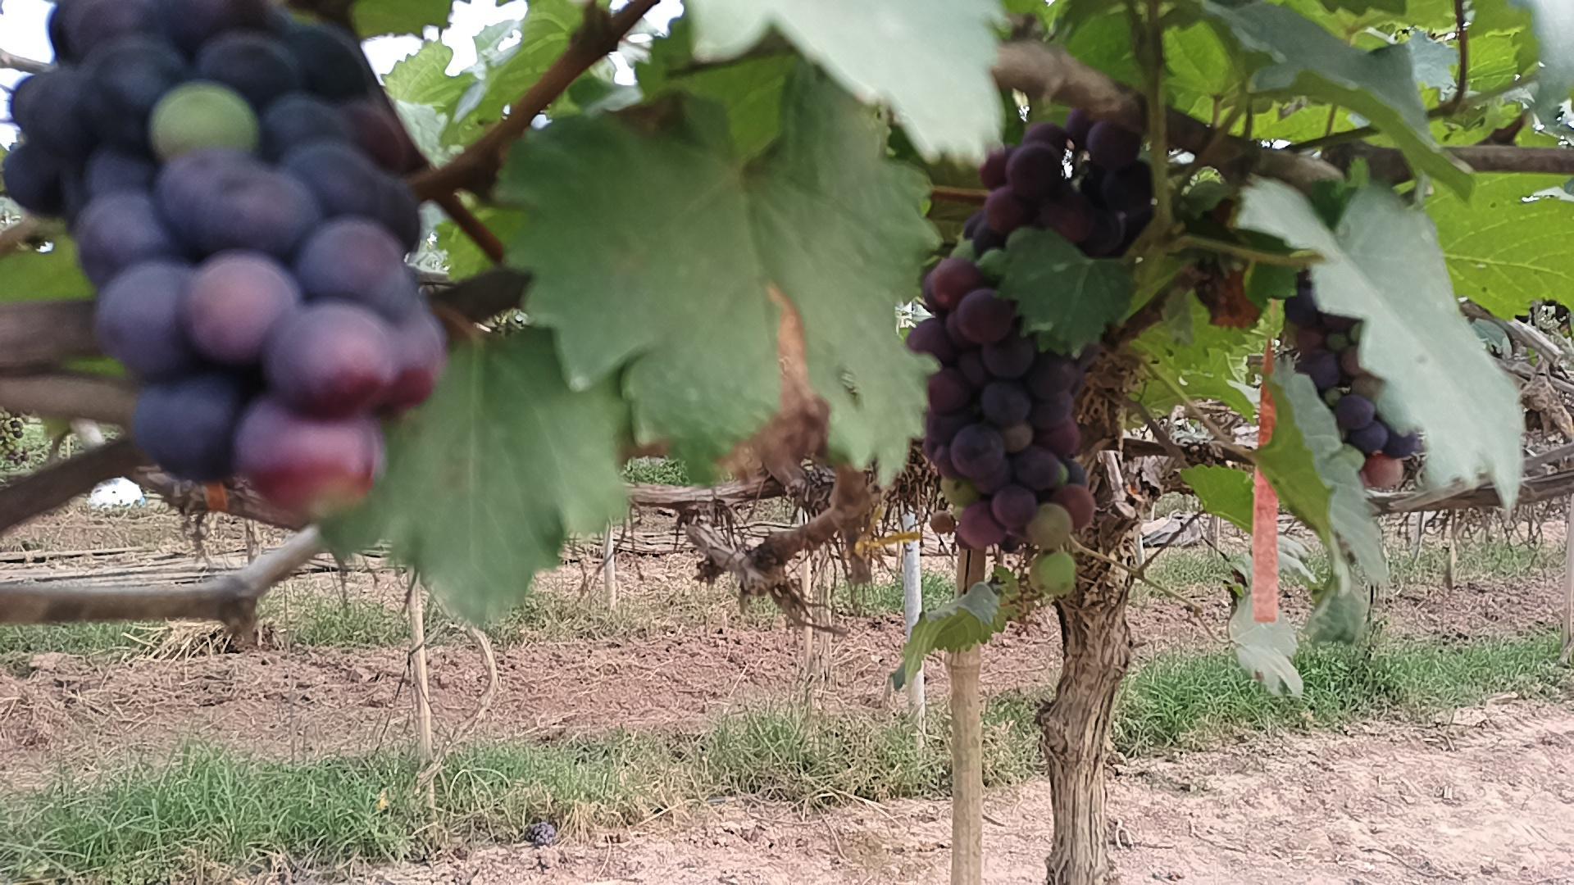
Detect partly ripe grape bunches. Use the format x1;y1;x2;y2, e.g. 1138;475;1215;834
1284;281;1423;488
908;110;1153;593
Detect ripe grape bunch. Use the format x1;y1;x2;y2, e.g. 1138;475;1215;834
4;0;445;511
